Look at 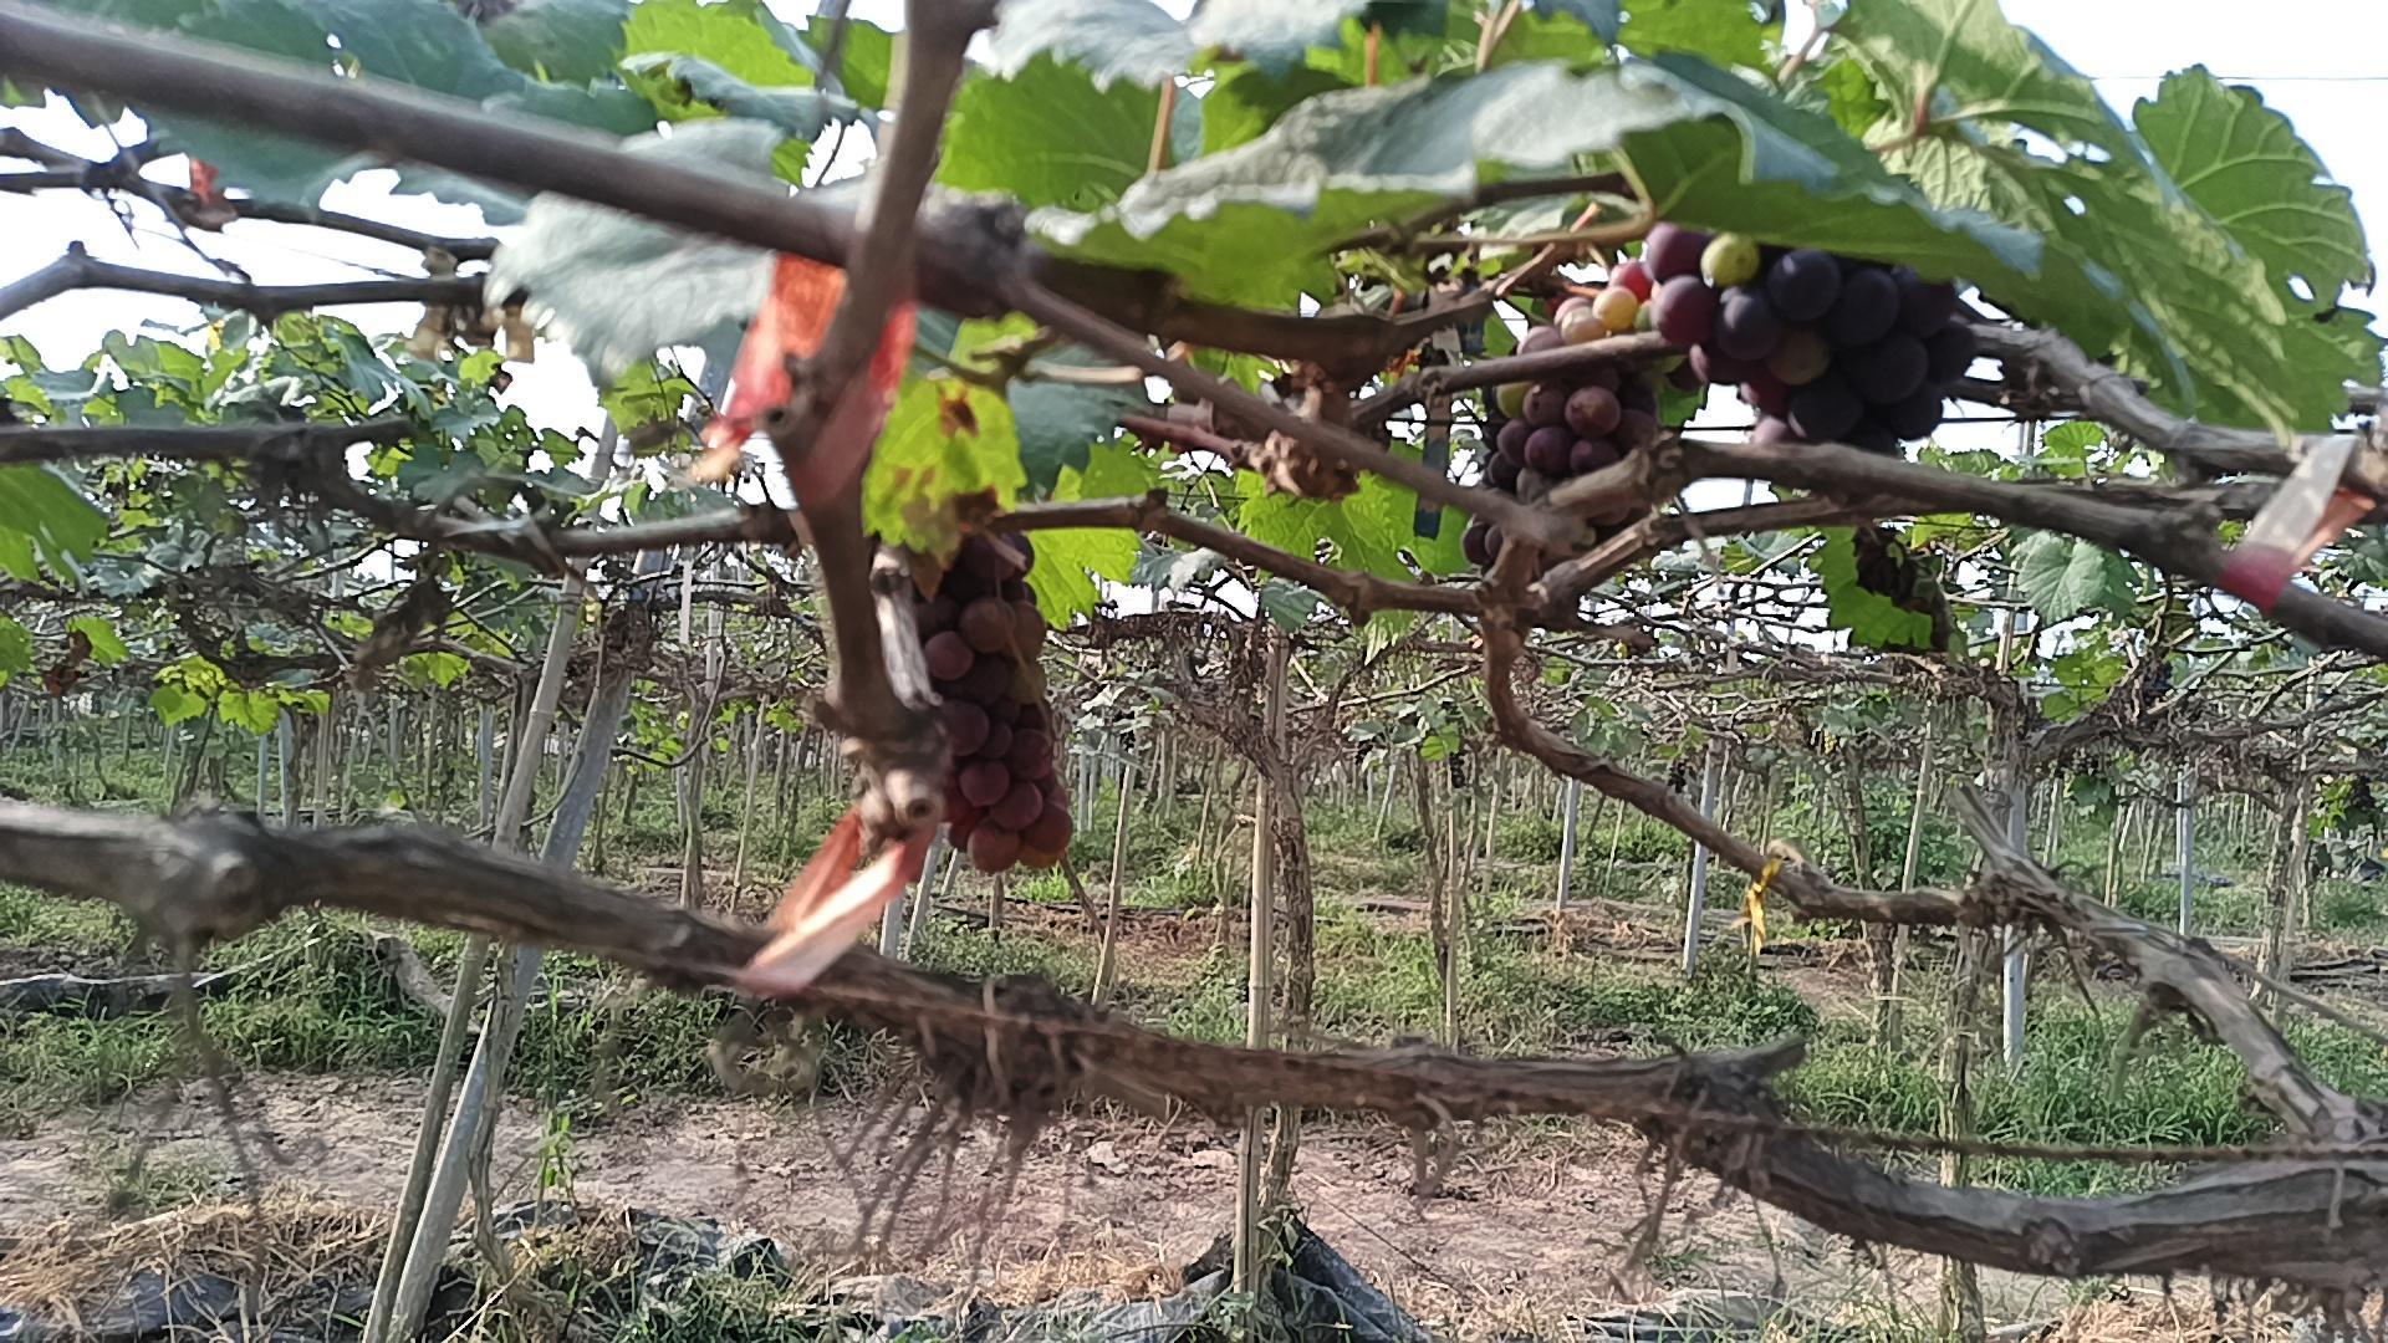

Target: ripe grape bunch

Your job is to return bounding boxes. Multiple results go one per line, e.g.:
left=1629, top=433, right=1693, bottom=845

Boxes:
left=914, top=535, right=1072, bottom=872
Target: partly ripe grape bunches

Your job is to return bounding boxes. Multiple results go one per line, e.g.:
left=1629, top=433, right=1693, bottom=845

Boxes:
left=1461, top=259, right=1706, bottom=572
left=1639, top=224, right=1975, bottom=450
